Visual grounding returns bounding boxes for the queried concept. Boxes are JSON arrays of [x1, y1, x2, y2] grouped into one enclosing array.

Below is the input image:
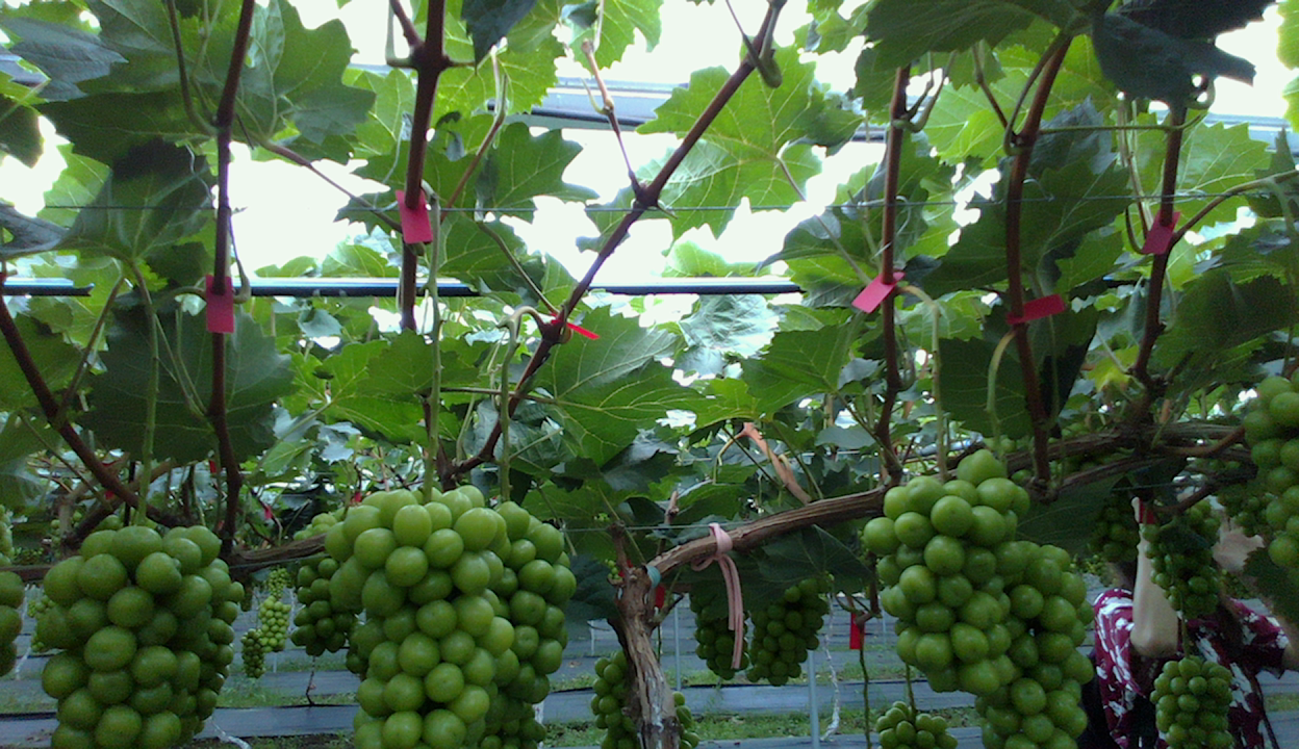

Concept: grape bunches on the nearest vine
[[861, 450, 1028, 695], [973, 541, 1094, 748], [35, 525, 245, 748], [324, 484, 517, 748], [494, 503, 578, 705]]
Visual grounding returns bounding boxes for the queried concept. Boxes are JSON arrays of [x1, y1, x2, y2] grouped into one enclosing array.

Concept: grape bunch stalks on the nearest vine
[[137, 287, 195, 525], [897, 284, 946, 480], [419, 195, 444, 502], [496, 305, 547, 500], [988, 333, 1013, 465]]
